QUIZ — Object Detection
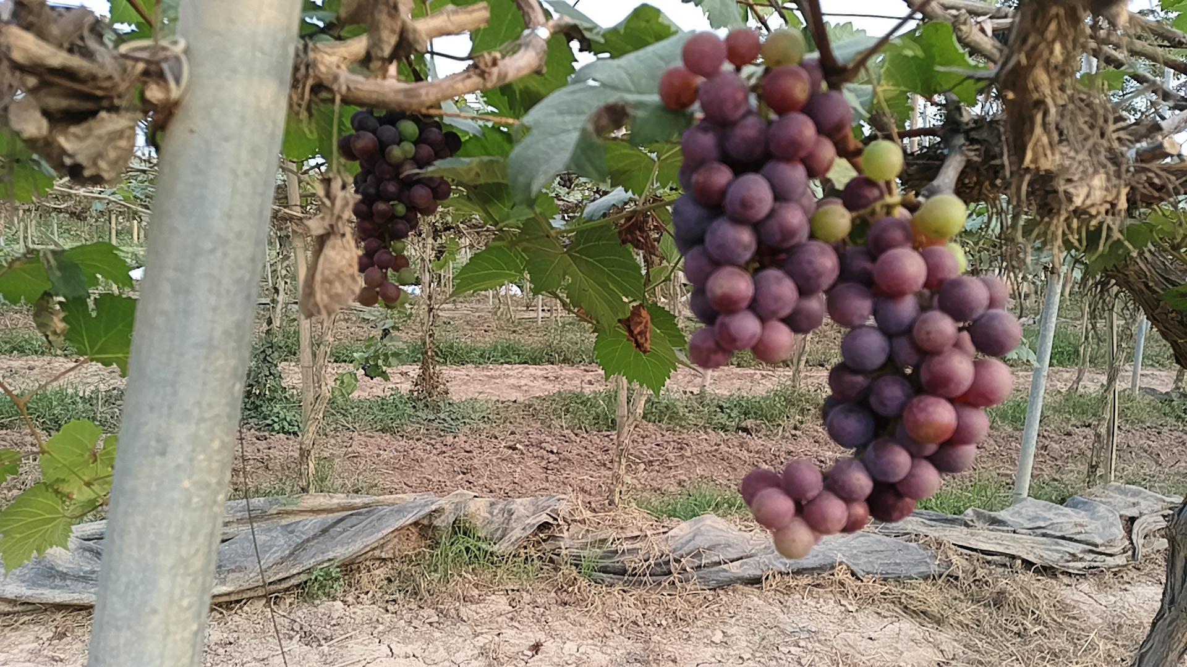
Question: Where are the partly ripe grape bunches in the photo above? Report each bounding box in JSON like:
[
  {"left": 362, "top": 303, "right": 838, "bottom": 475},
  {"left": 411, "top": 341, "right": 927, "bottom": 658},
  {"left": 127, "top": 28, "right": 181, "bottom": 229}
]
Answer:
[
  {"left": 338, "top": 110, "right": 461, "bottom": 306},
  {"left": 741, "top": 137, "right": 1021, "bottom": 560},
  {"left": 660, "top": 28, "right": 852, "bottom": 367}
]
